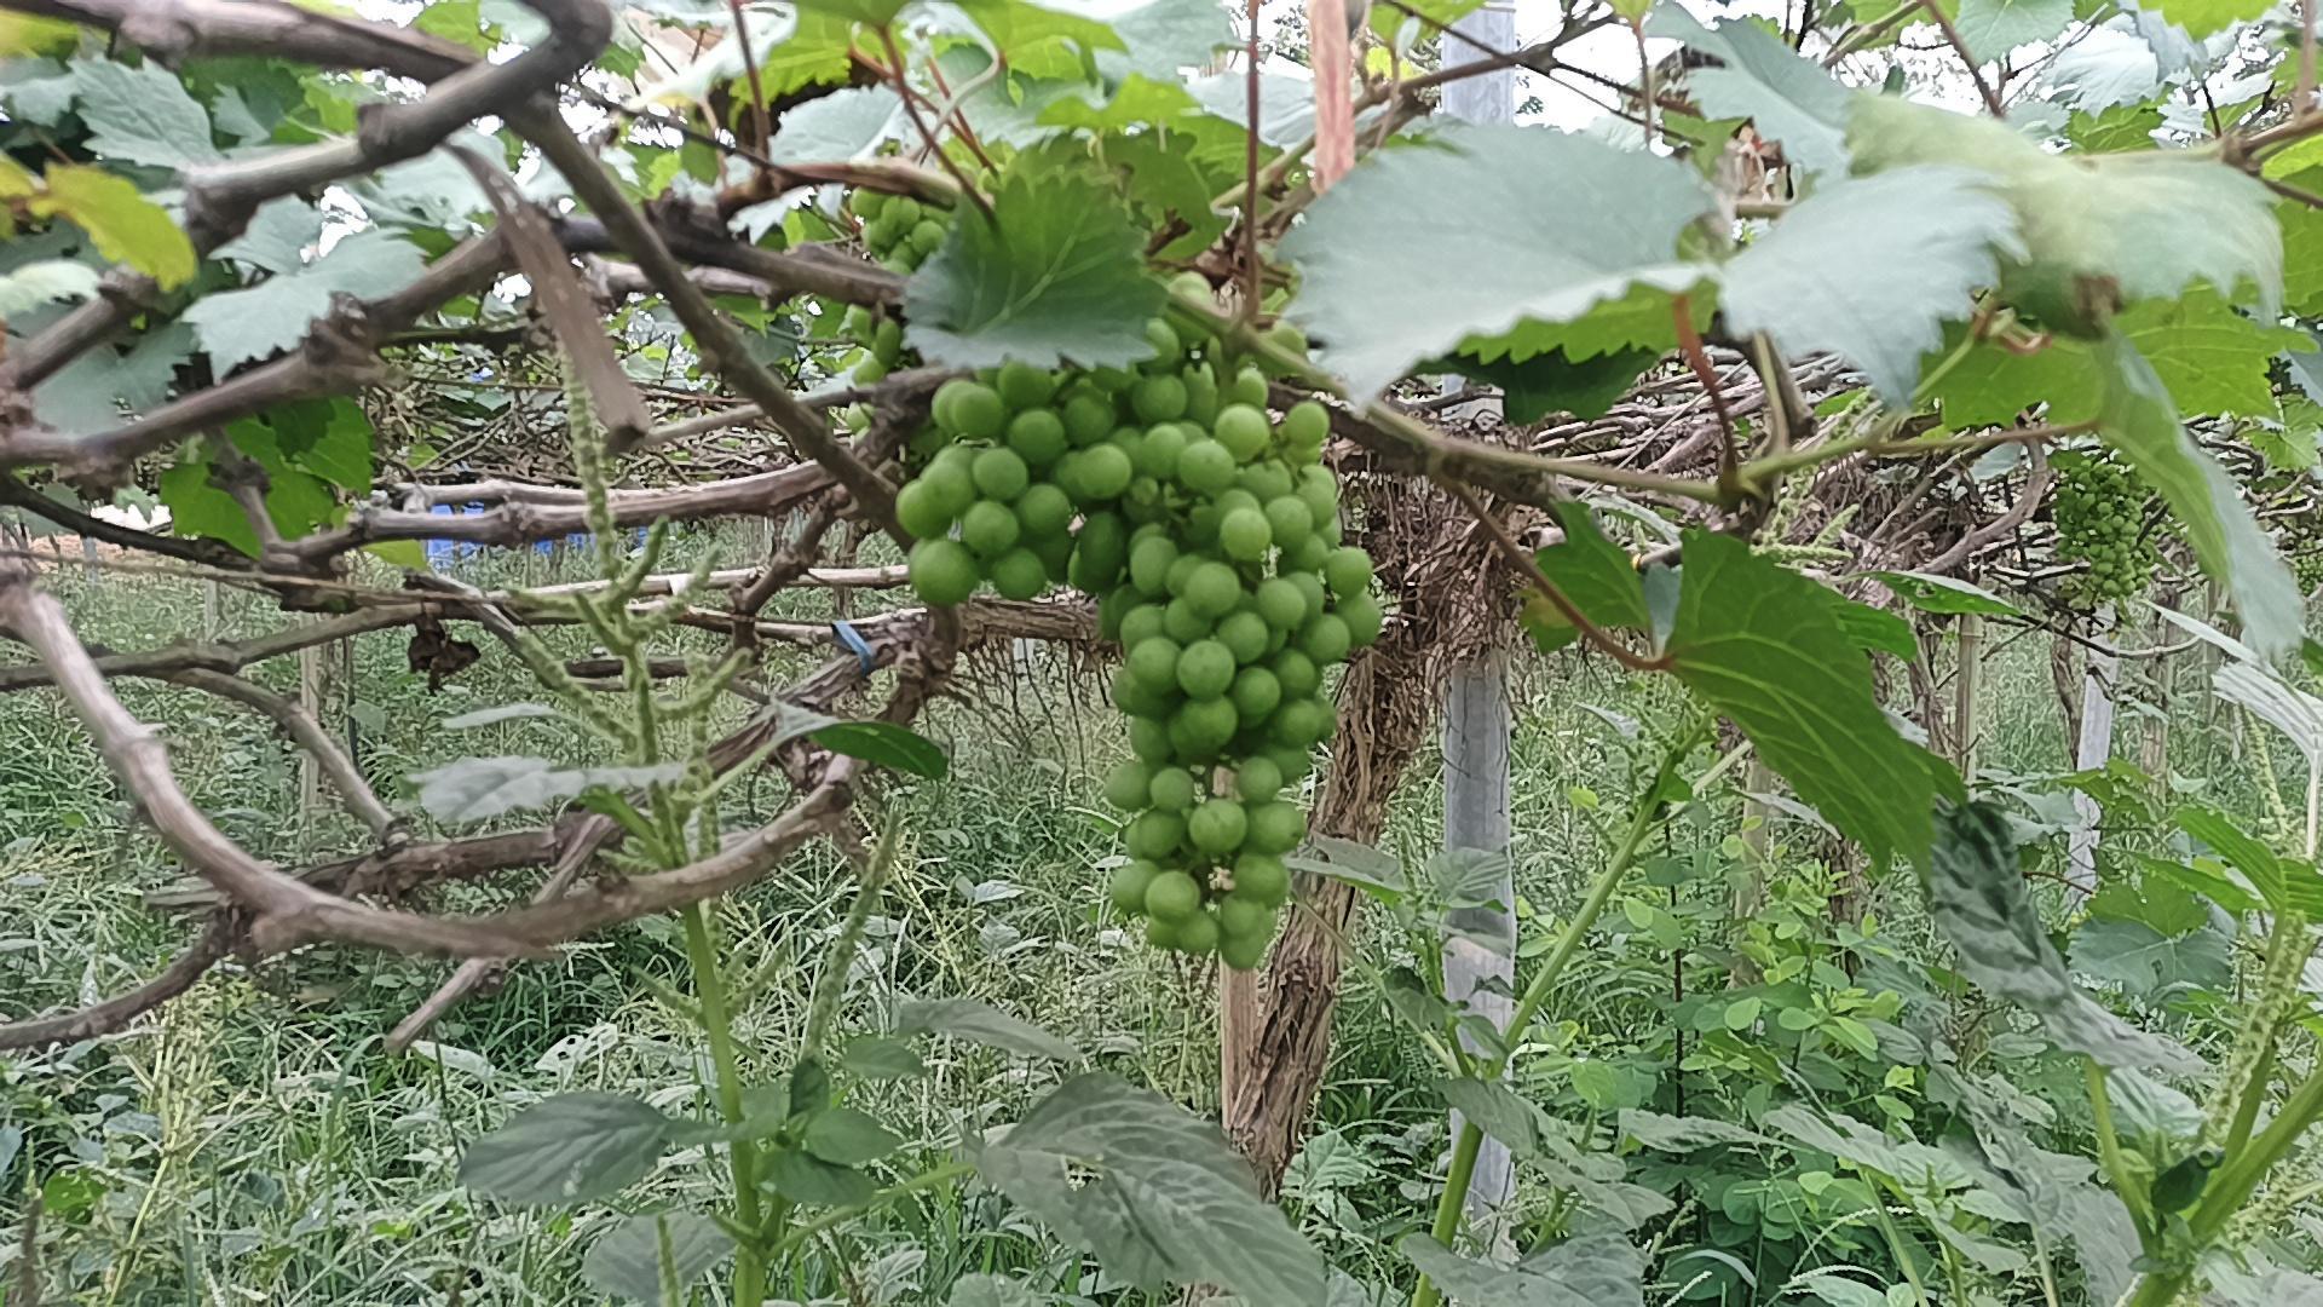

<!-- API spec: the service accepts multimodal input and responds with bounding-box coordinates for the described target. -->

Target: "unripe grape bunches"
[900,269,1380,968]
[2051,447,2165,600]
[846,161,1008,436]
